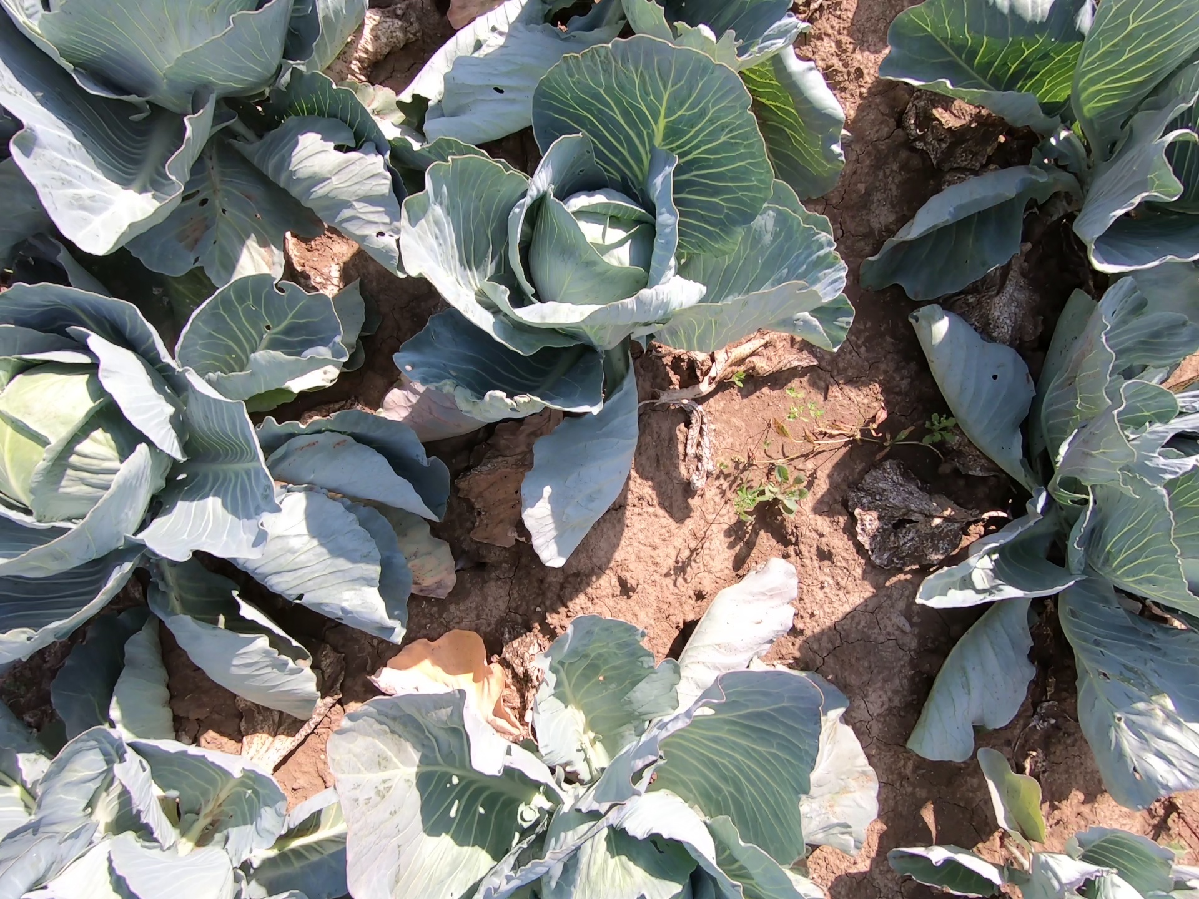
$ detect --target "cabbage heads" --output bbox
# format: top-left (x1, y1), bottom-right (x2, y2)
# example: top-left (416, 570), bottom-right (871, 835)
top-left (2, 357), bottom-right (162, 517)
top-left (543, 793), bottom-right (698, 898)
top-left (538, 188), bottom-right (663, 316)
